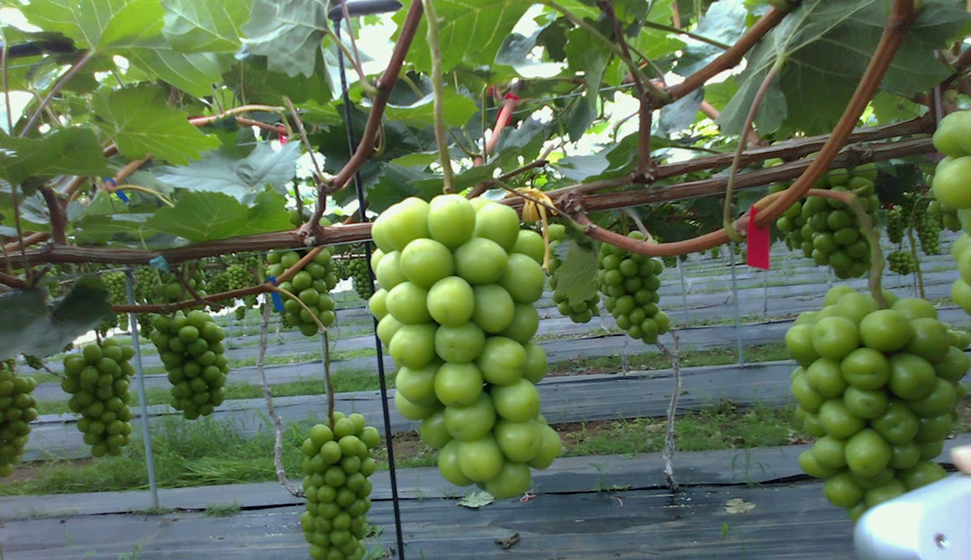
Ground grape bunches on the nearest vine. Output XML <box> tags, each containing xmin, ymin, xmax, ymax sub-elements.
<box><xmin>931</xmin><ymin>109</ymin><xmax>970</xmax><ymax>313</ymax></box>
<box><xmin>786</xmin><ymin>285</ymin><xmax>968</xmax><ymax>519</ymax></box>
<box><xmin>366</xmin><ymin>195</ymin><xmax>561</xmax><ymax>503</ymax></box>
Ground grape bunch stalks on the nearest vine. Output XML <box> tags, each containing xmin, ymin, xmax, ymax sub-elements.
<box><xmin>752</xmin><ymin>188</ymin><xmax>886</xmax><ymax>306</ymax></box>
<box><xmin>422</xmin><ymin>1</ymin><xmax>454</xmax><ymax>191</ymax></box>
